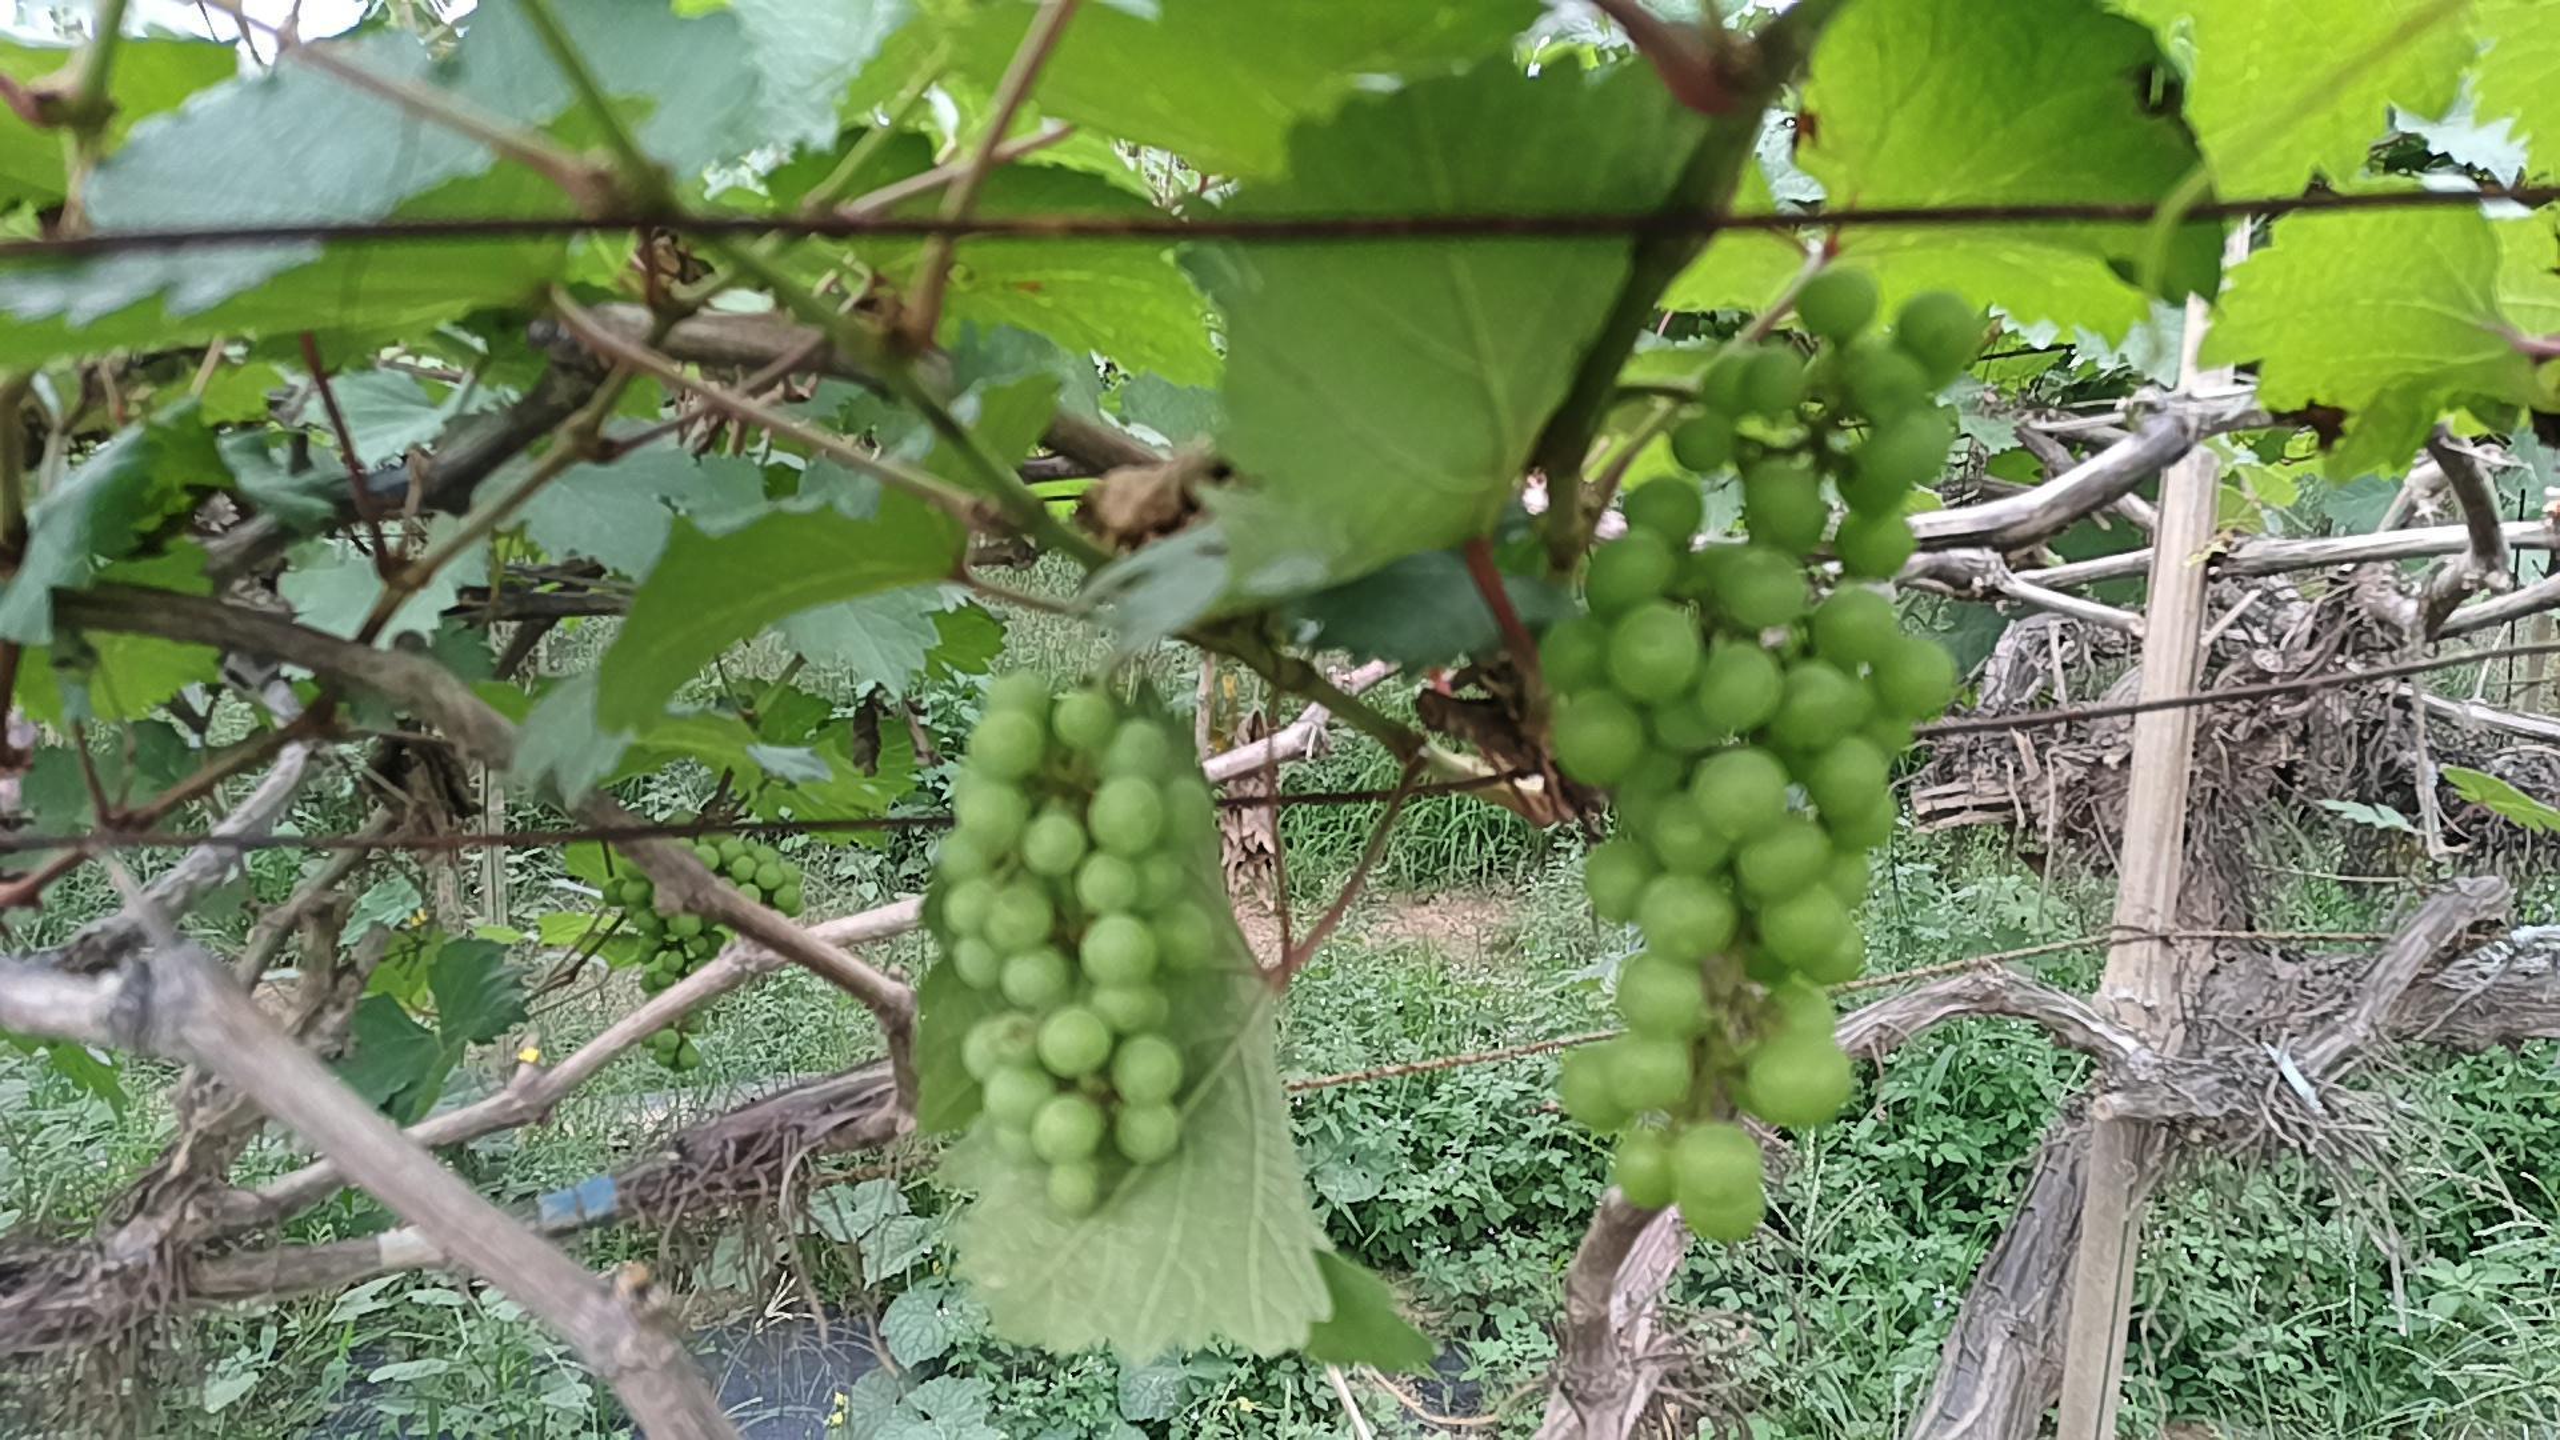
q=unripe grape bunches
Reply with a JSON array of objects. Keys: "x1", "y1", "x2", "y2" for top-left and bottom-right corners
[
  {"x1": 599, "y1": 811, "x2": 805, "y2": 1071},
  {"x1": 1539, "y1": 271, "x2": 1981, "y2": 1241},
  {"x1": 937, "y1": 676, "x2": 1220, "y2": 1215}
]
